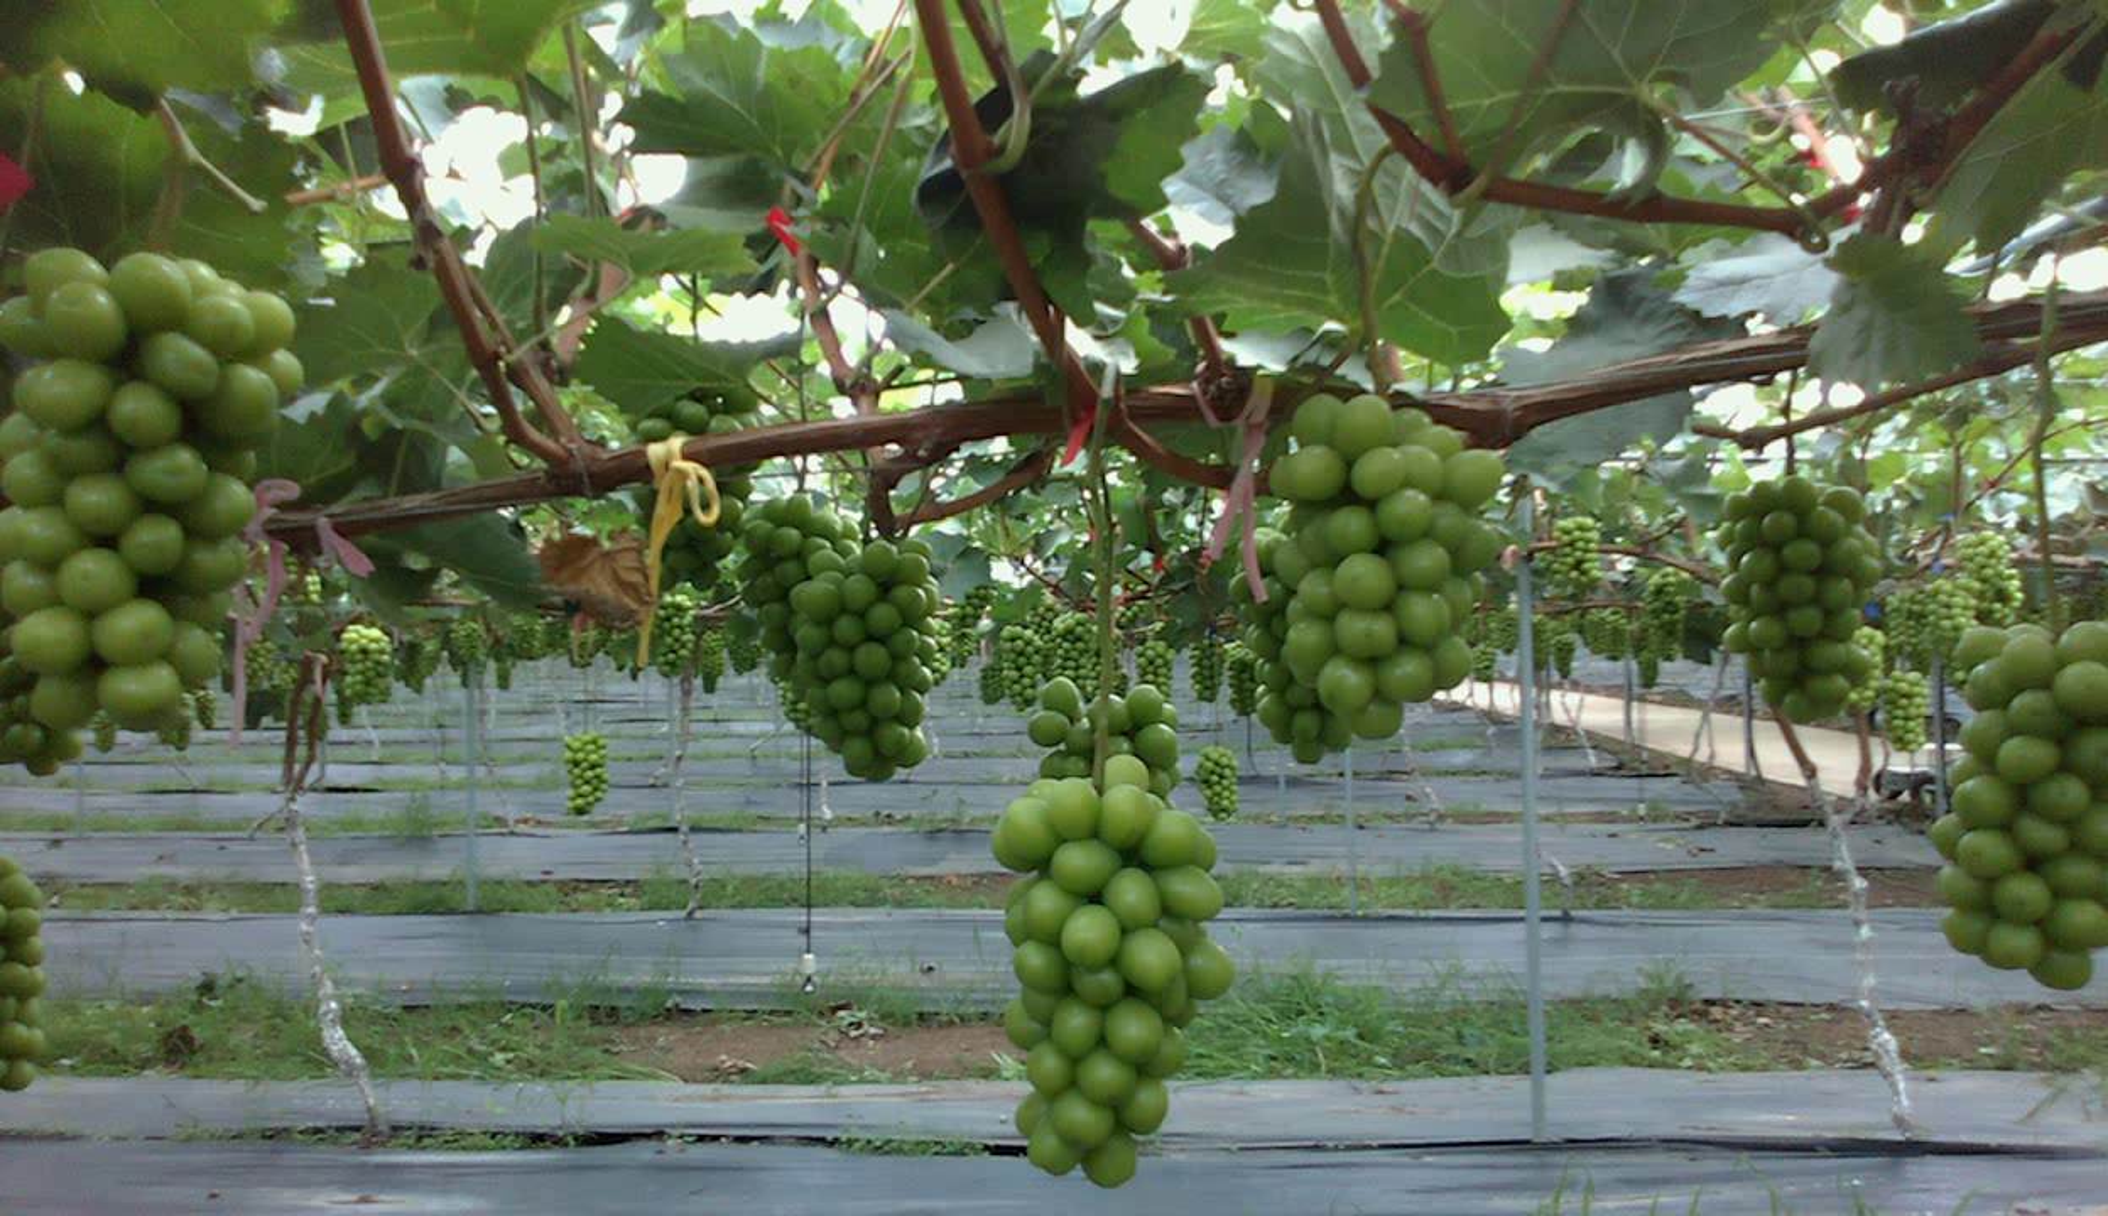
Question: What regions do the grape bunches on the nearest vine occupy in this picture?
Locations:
[0,250,304,733]
[1269,394,1505,741]
[990,755,1240,1191]
[1932,622,2106,990]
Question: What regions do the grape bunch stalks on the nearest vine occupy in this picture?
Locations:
[145,105,191,253]
[2032,289,2057,635]
[1089,365,1116,794]
[1353,140,1395,395]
